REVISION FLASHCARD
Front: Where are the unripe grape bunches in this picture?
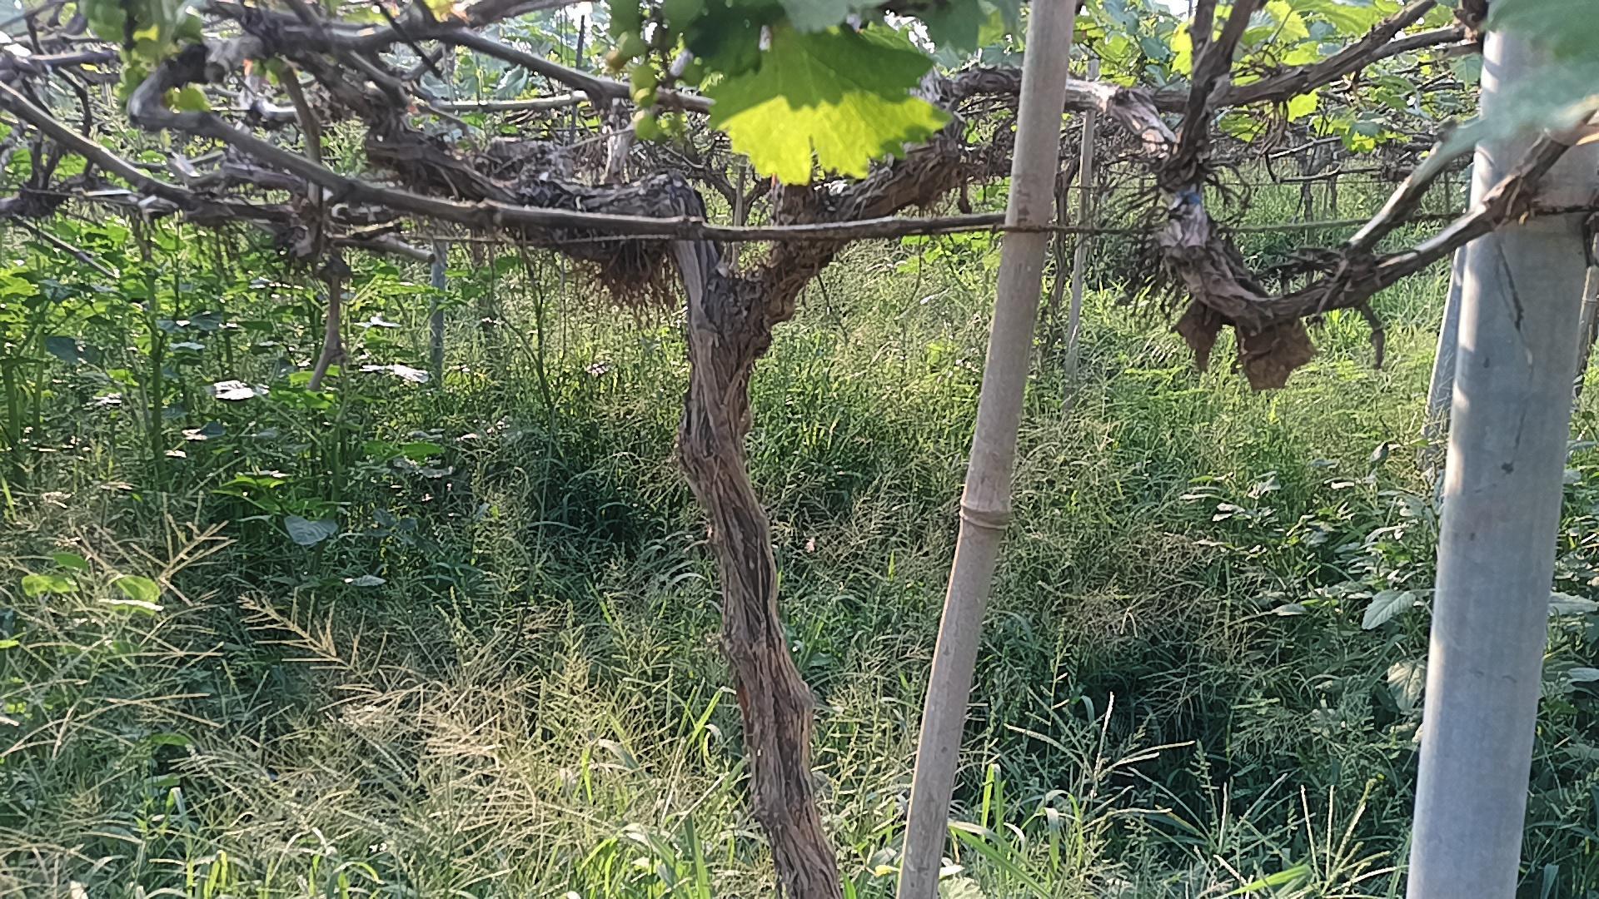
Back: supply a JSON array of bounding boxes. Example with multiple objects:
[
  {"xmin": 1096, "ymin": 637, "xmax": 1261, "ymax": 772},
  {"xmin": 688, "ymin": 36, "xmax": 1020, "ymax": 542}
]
[
  {"xmin": 78, "ymin": 0, "xmax": 209, "ymax": 125},
  {"xmin": 606, "ymin": 0, "xmax": 693, "ymax": 140}
]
